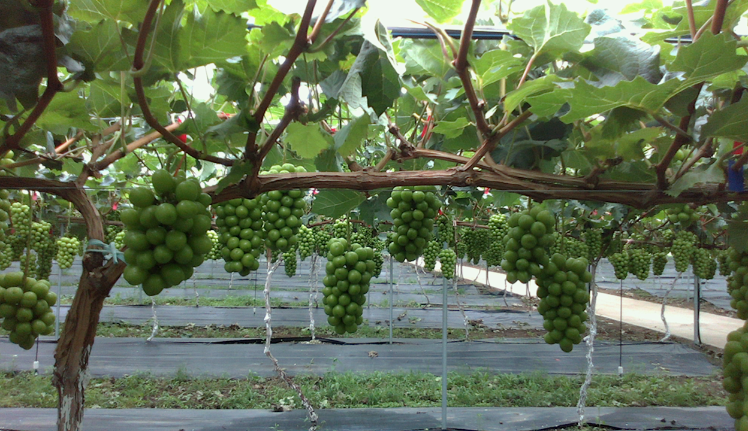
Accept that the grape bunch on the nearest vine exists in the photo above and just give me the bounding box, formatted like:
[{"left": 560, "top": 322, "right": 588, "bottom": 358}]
[{"left": 121, "top": 169, "right": 212, "bottom": 296}]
